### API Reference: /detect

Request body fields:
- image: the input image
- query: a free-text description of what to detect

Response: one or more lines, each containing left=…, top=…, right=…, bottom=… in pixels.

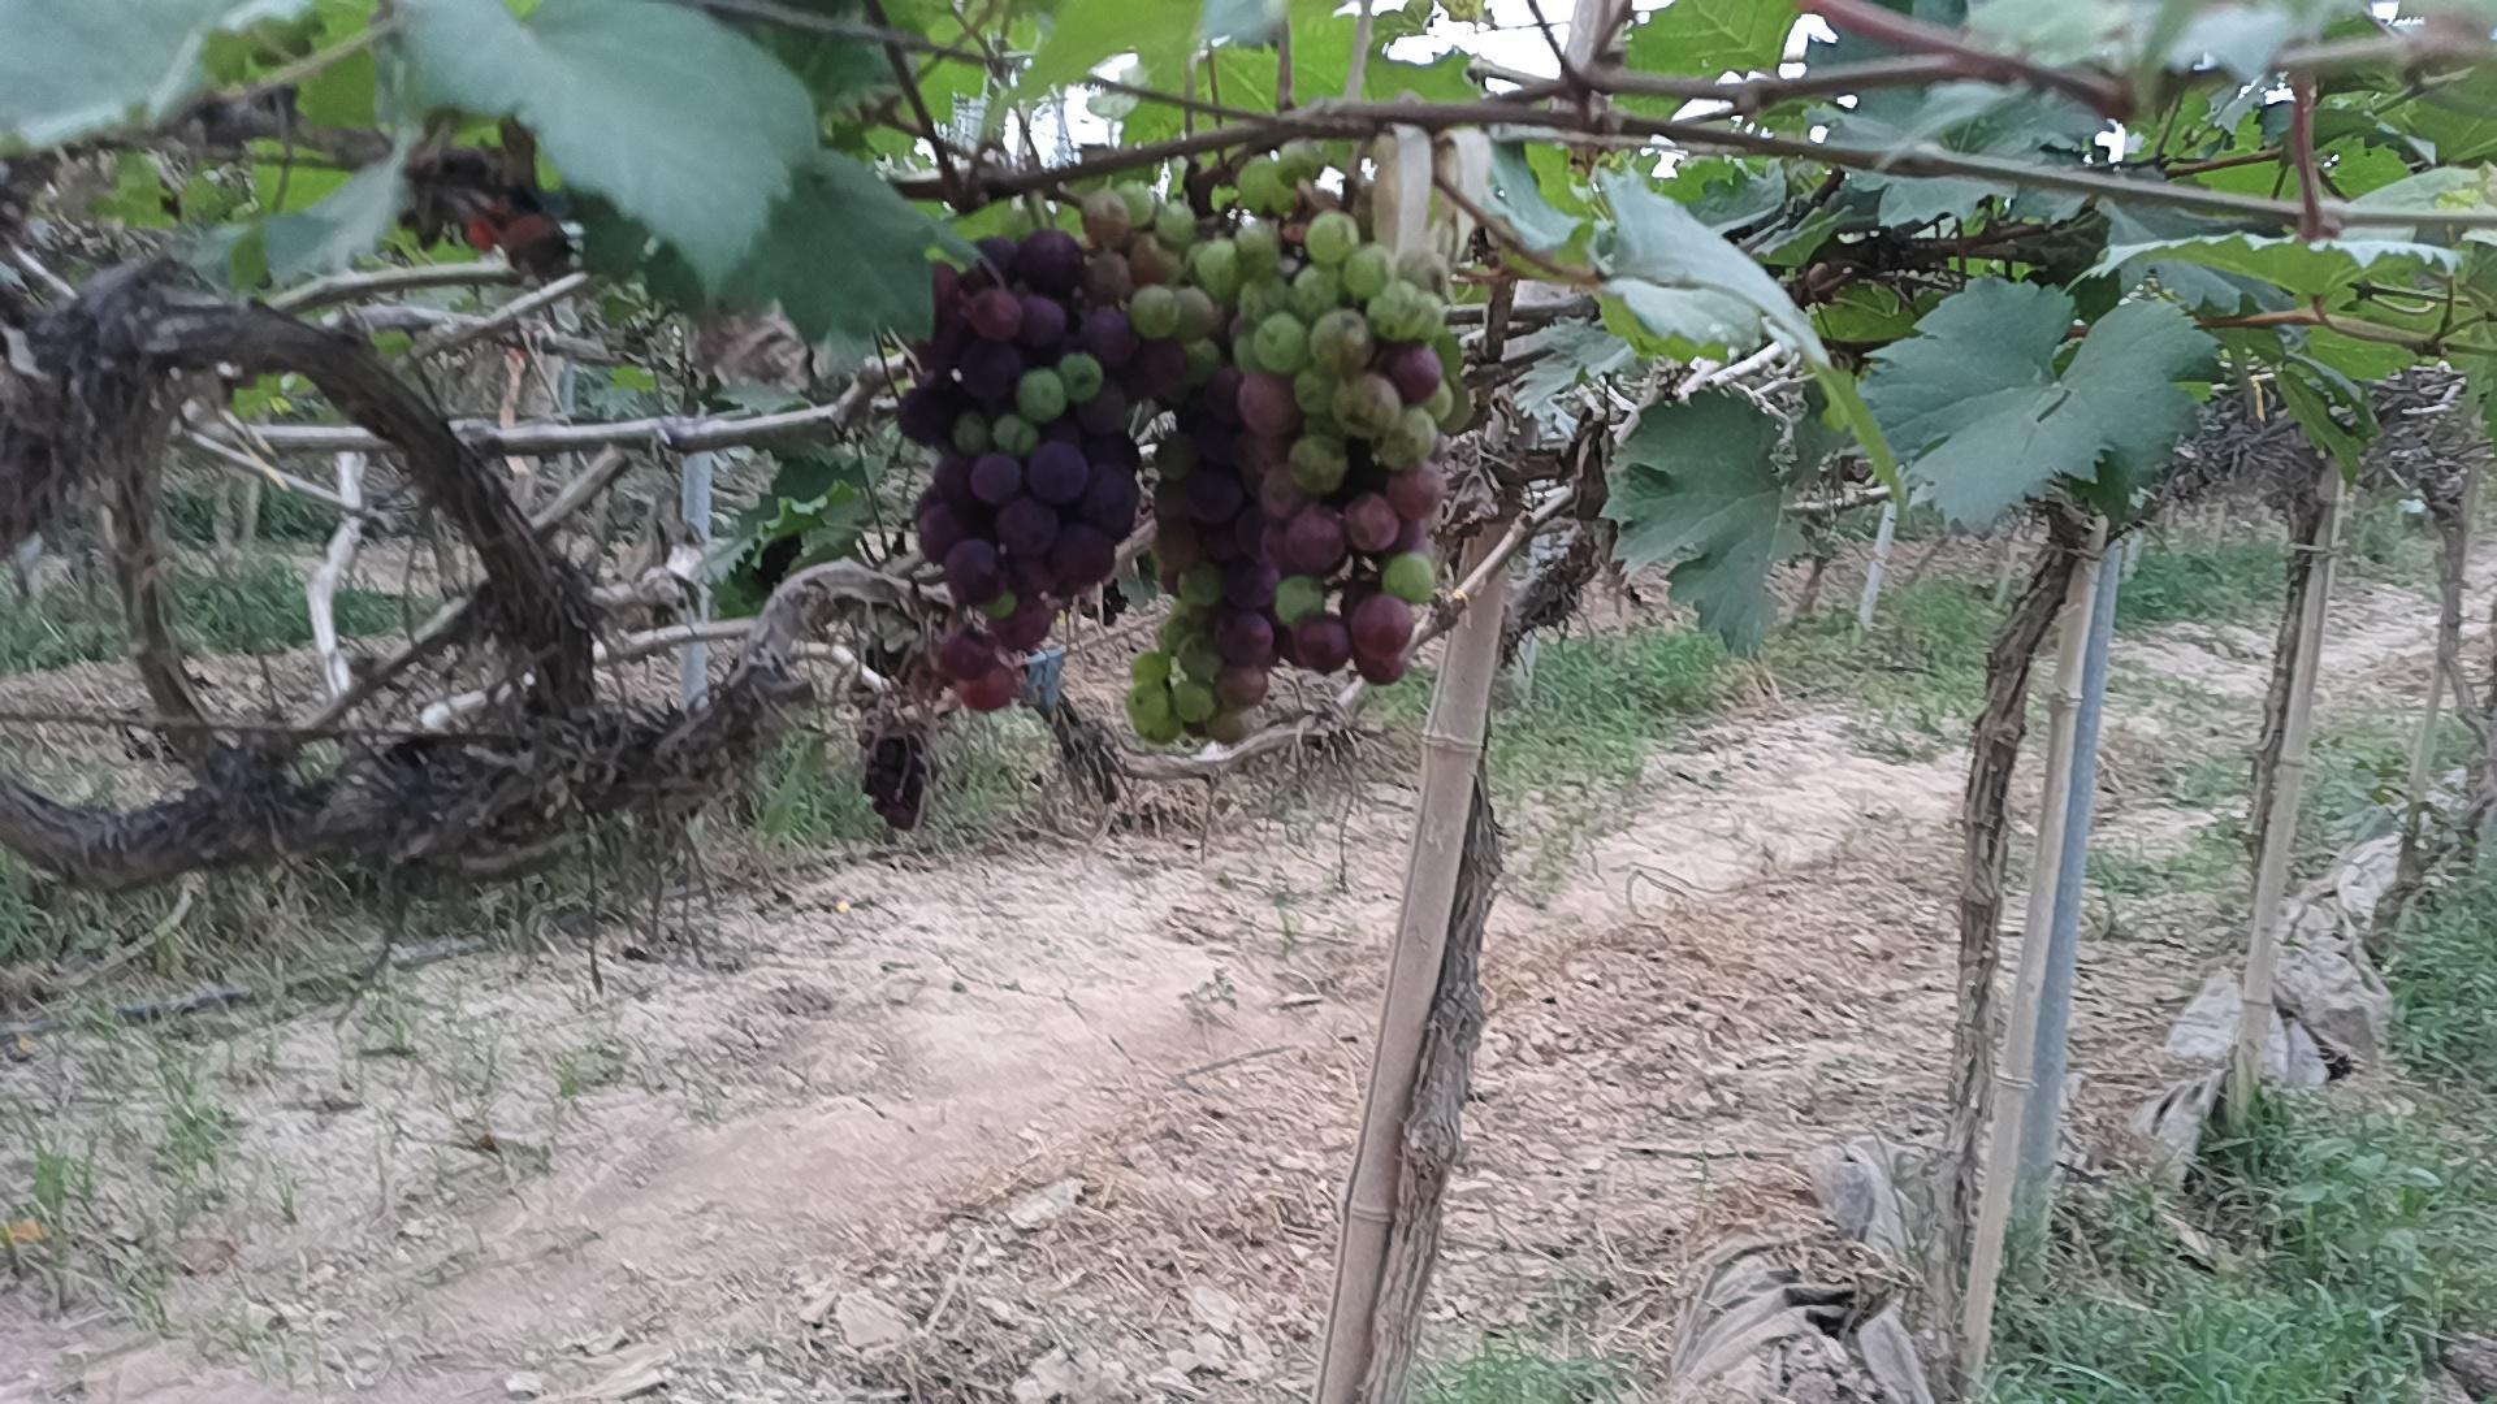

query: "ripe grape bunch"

left=862, top=714, right=934, bottom=831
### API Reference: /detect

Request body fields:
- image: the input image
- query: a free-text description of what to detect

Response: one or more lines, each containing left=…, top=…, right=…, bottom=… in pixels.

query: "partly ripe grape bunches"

left=1237, top=213, right=1459, bottom=681
left=1129, top=142, right=1364, bottom=742
left=901, top=165, right=1220, bottom=720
